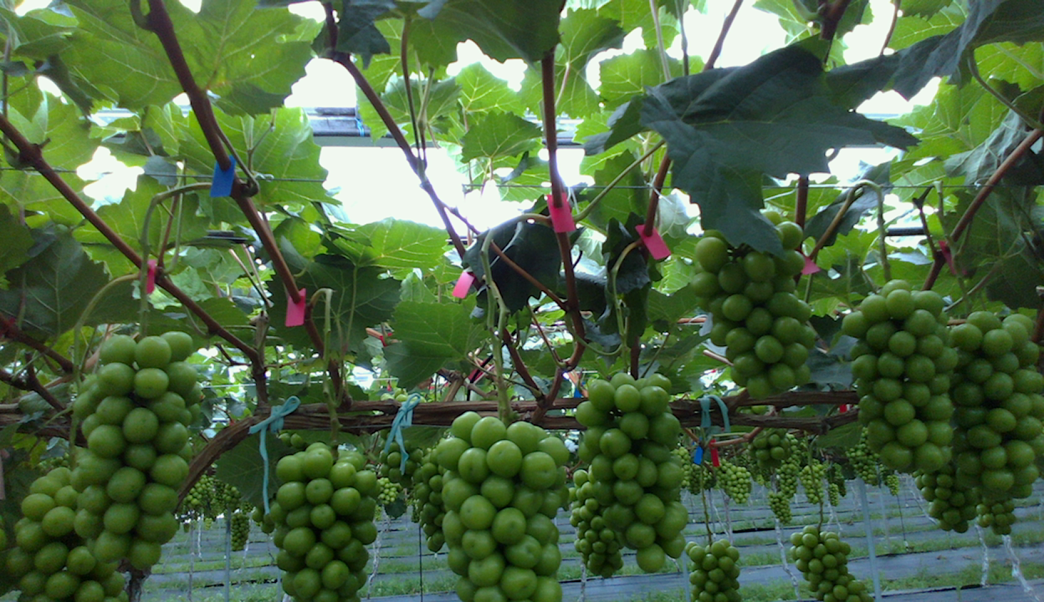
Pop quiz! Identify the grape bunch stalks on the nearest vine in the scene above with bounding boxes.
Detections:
[934,181,974,317]
[308,288,340,464]
[806,179,891,283]
[480,212,552,427]
[609,238,642,374]
[67,273,139,472]
[139,181,212,339]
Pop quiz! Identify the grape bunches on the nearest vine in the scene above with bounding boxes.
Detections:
[691,211,817,400]
[842,280,959,474]
[74,331,204,571]
[270,441,380,601]
[575,373,689,574]
[436,411,570,601]
[949,311,1043,500]
[3,467,128,601]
